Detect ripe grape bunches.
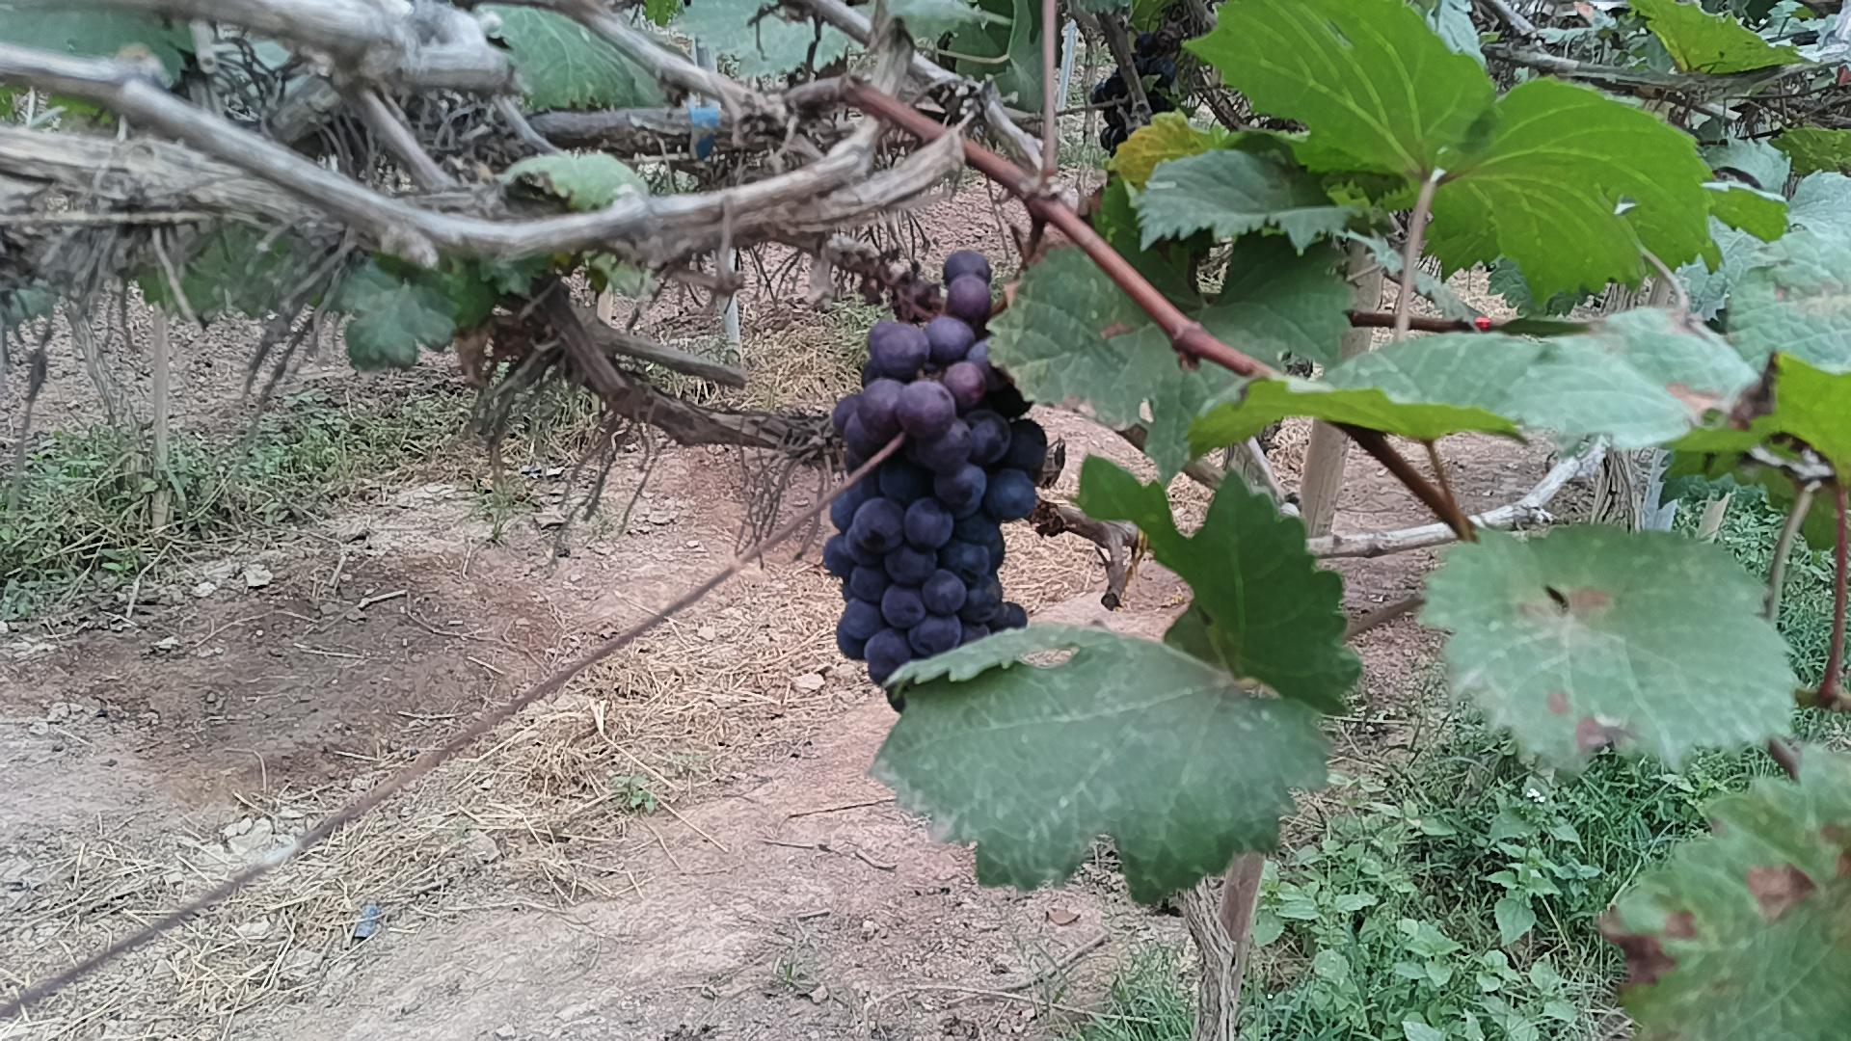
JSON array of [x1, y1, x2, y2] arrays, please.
[[1089, 23, 1184, 160], [821, 250, 1045, 682]]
